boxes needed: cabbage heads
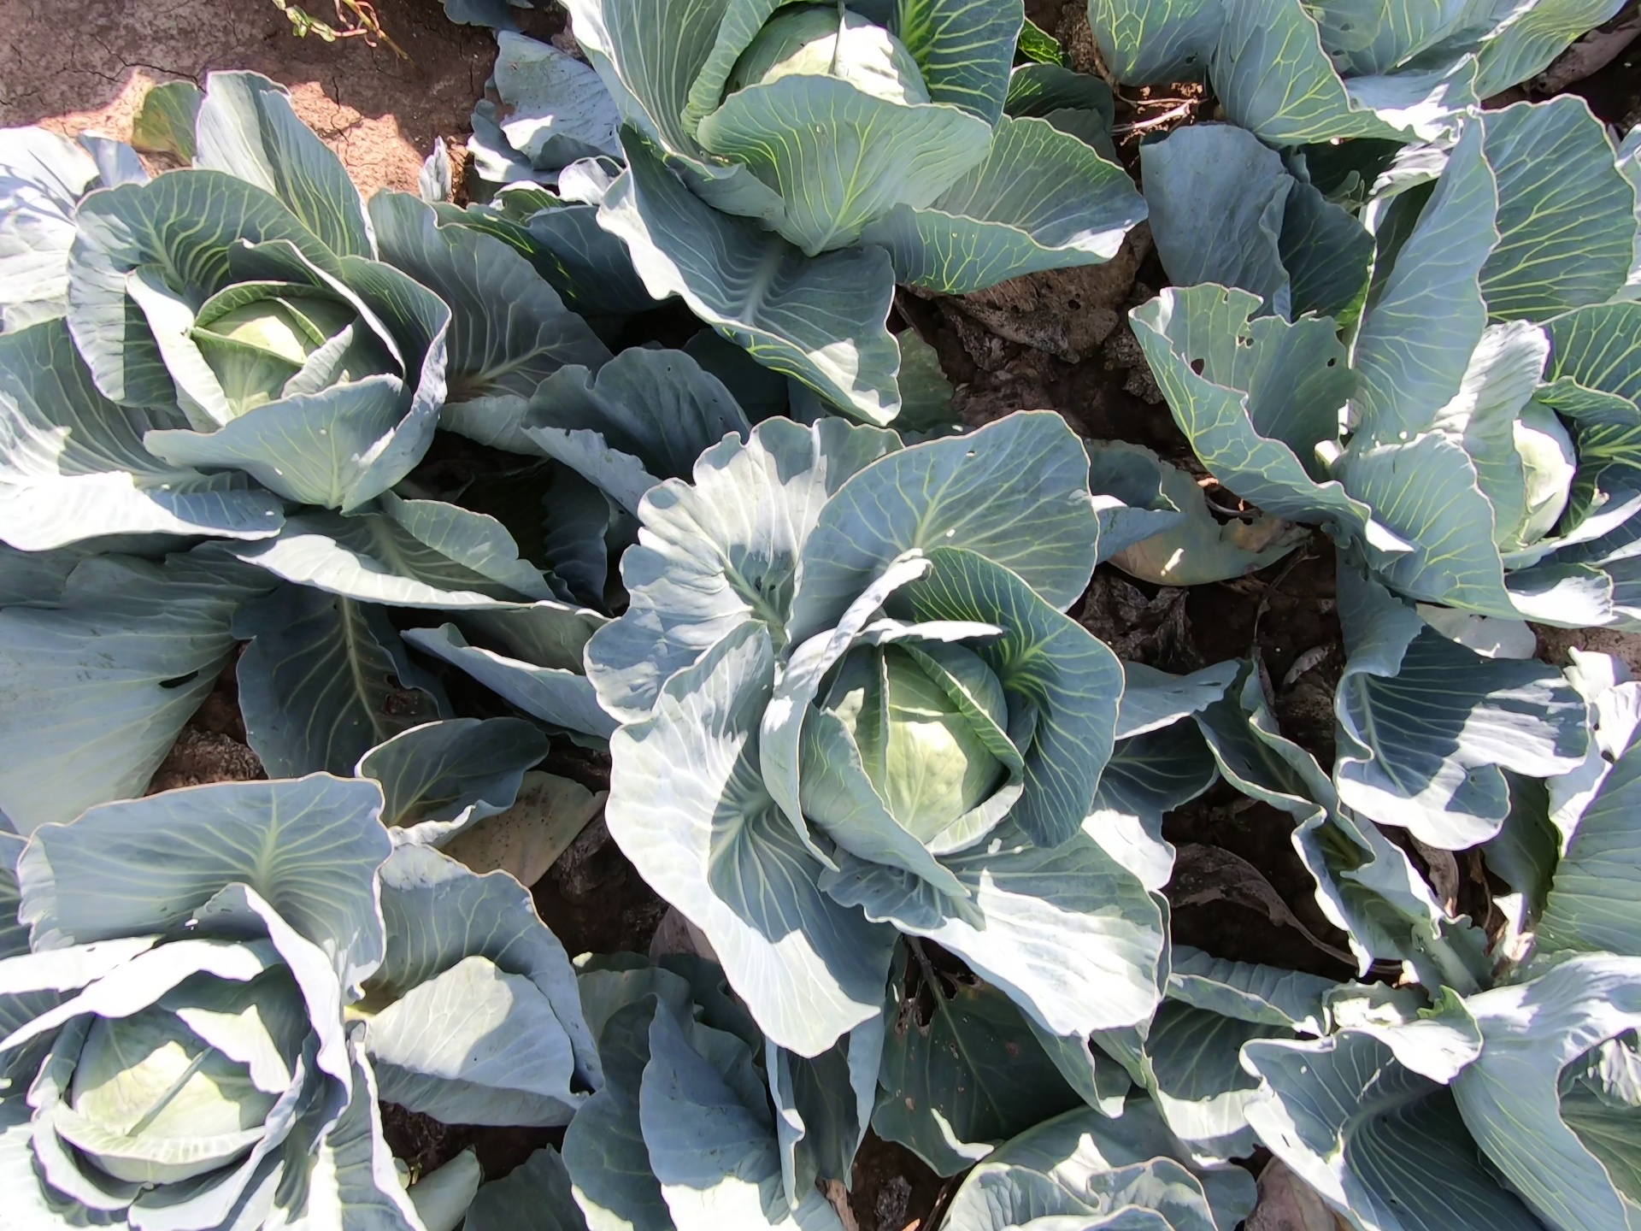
[797,634,1007,861]
[729,5,944,244]
[71,932,330,1176]
[1444,396,1583,557]
[1504,992,1639,1213]
[195,290,399,494]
